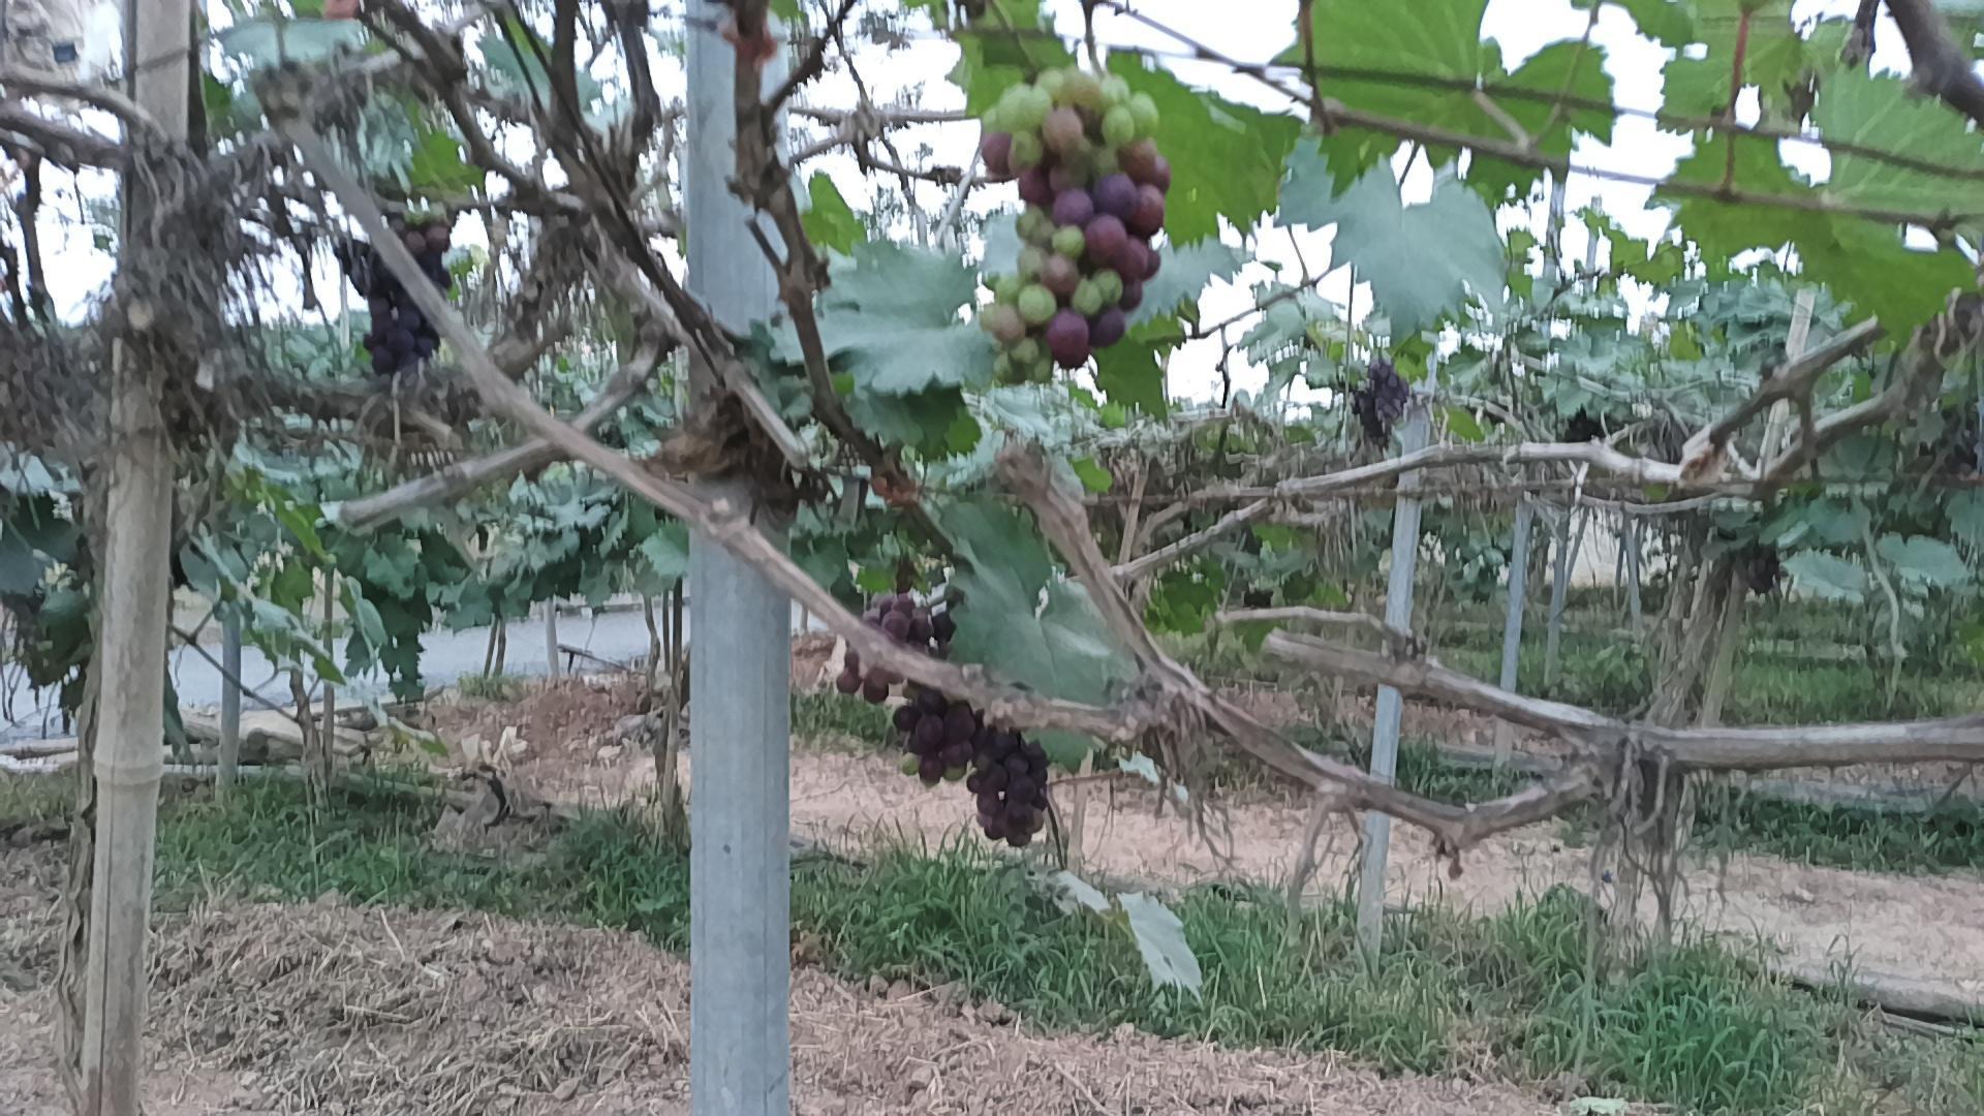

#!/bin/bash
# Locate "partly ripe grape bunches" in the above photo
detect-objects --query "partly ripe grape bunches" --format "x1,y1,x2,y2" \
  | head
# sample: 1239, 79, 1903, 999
979, 65, 1172, 383
892, 678, 977, 786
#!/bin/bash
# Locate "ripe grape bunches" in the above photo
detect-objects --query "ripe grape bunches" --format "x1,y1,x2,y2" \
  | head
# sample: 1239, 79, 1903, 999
1351, 355, 1408, 451
336, 216, 450, 375
965, 710, 1050, 847
836, 591, 955, 704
